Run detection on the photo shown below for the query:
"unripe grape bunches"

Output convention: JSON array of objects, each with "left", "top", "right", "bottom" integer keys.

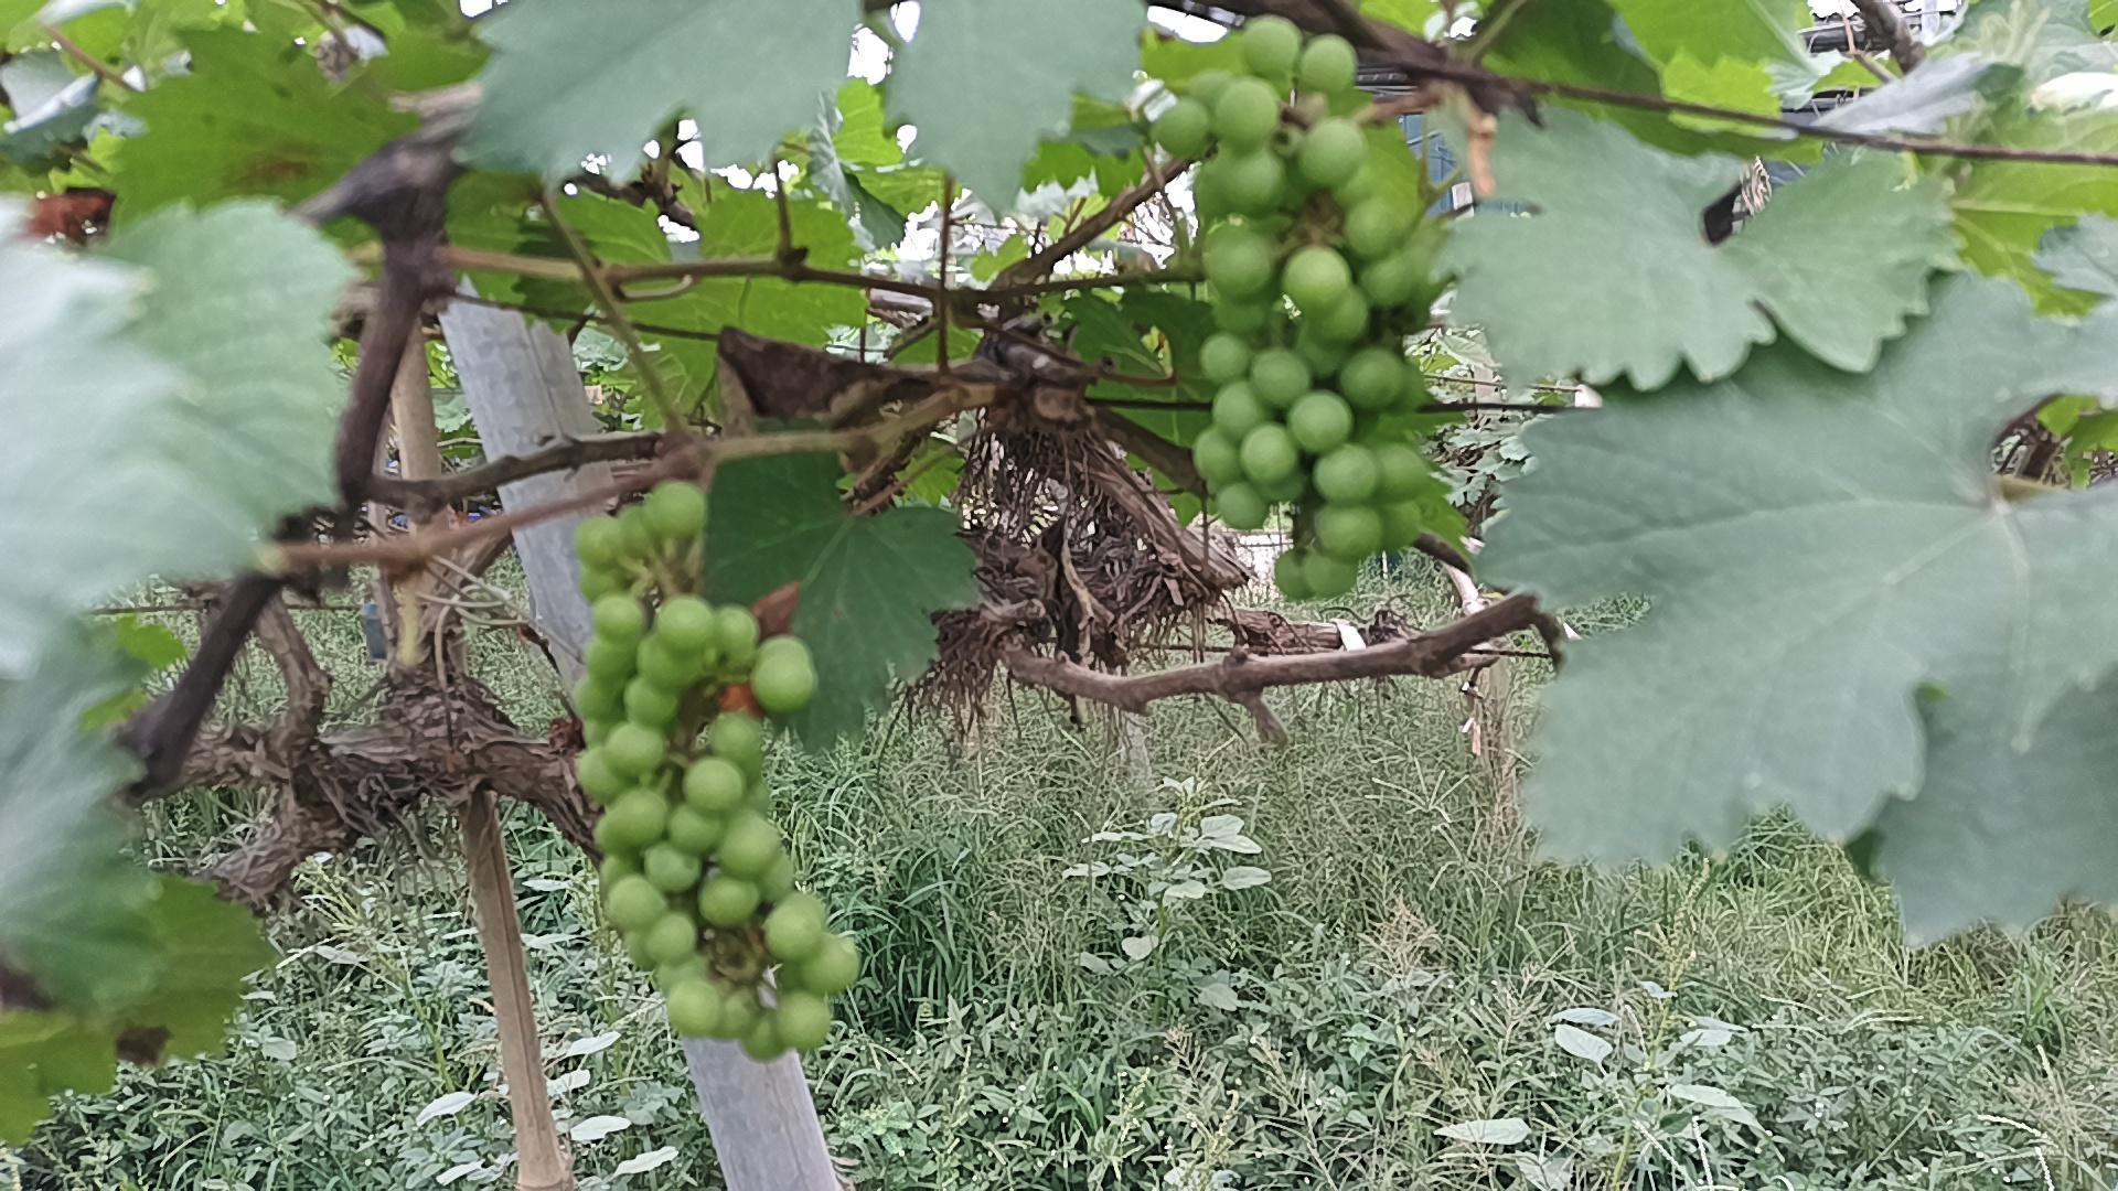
[
  {"left": 575, "top": 482, "right": 857, "bottom": 1061},
  {"left": 1154, "top": 19, "right": 1436, "bottom": 599}
]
